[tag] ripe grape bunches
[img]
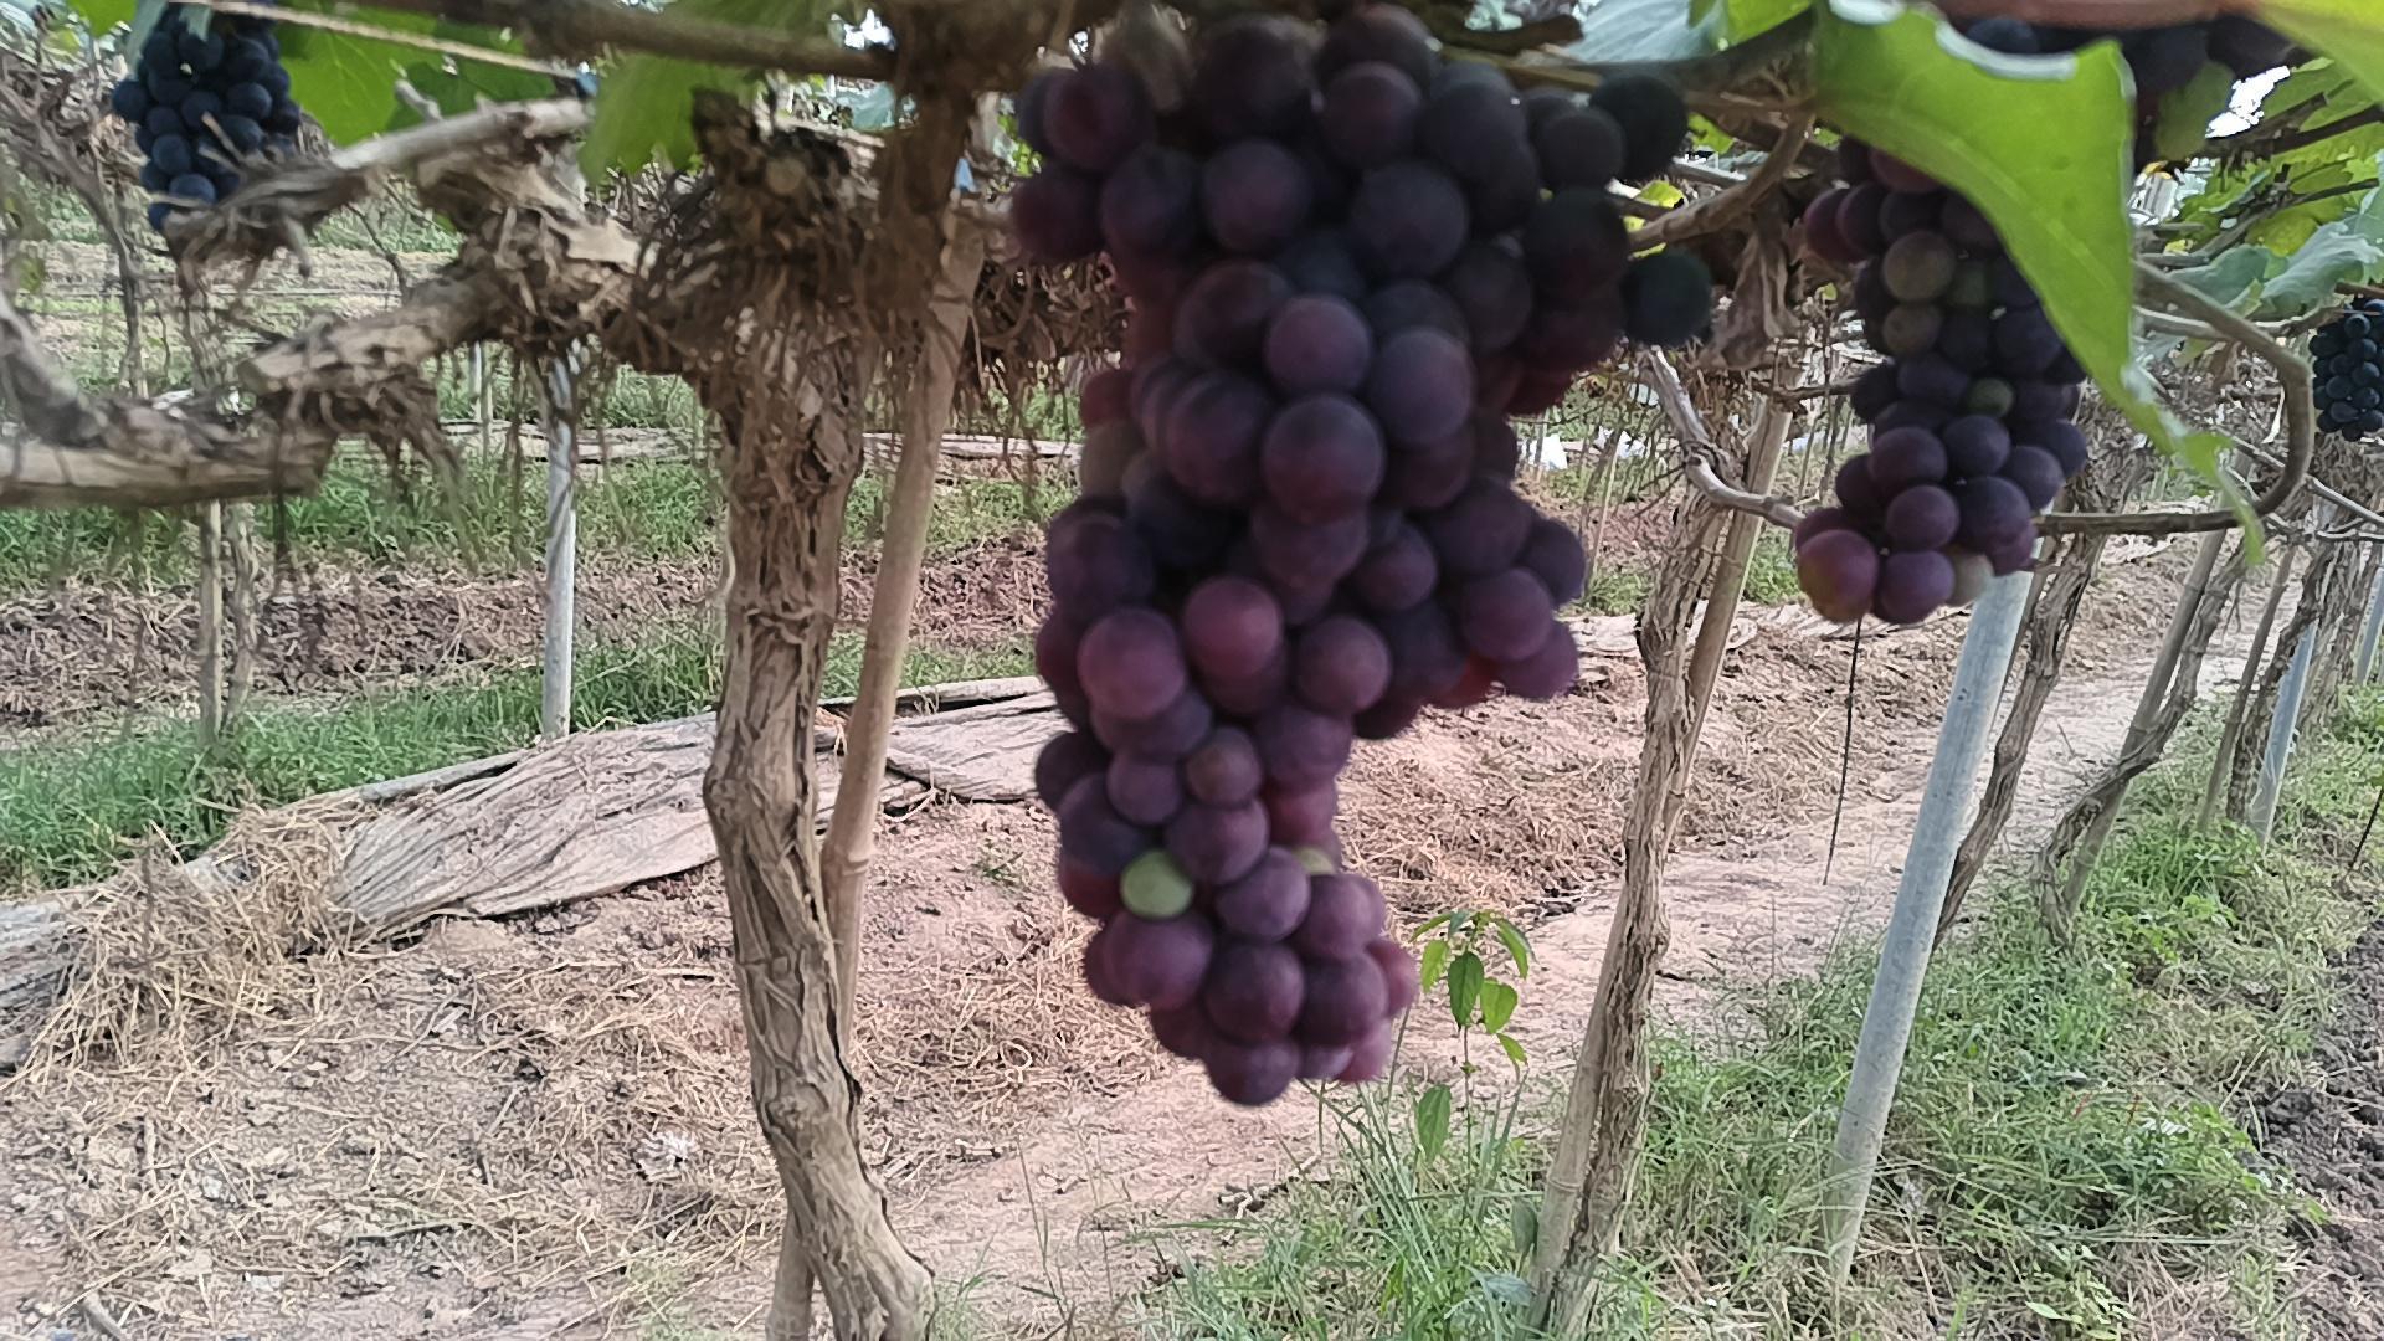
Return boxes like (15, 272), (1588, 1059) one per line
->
(2309, 293), (2383, 440)
(113, 0), (303, 232)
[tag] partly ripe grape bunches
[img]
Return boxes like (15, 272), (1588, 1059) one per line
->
(1792, 134), (2090, 627)
(1021, 0), (1717, 1099)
